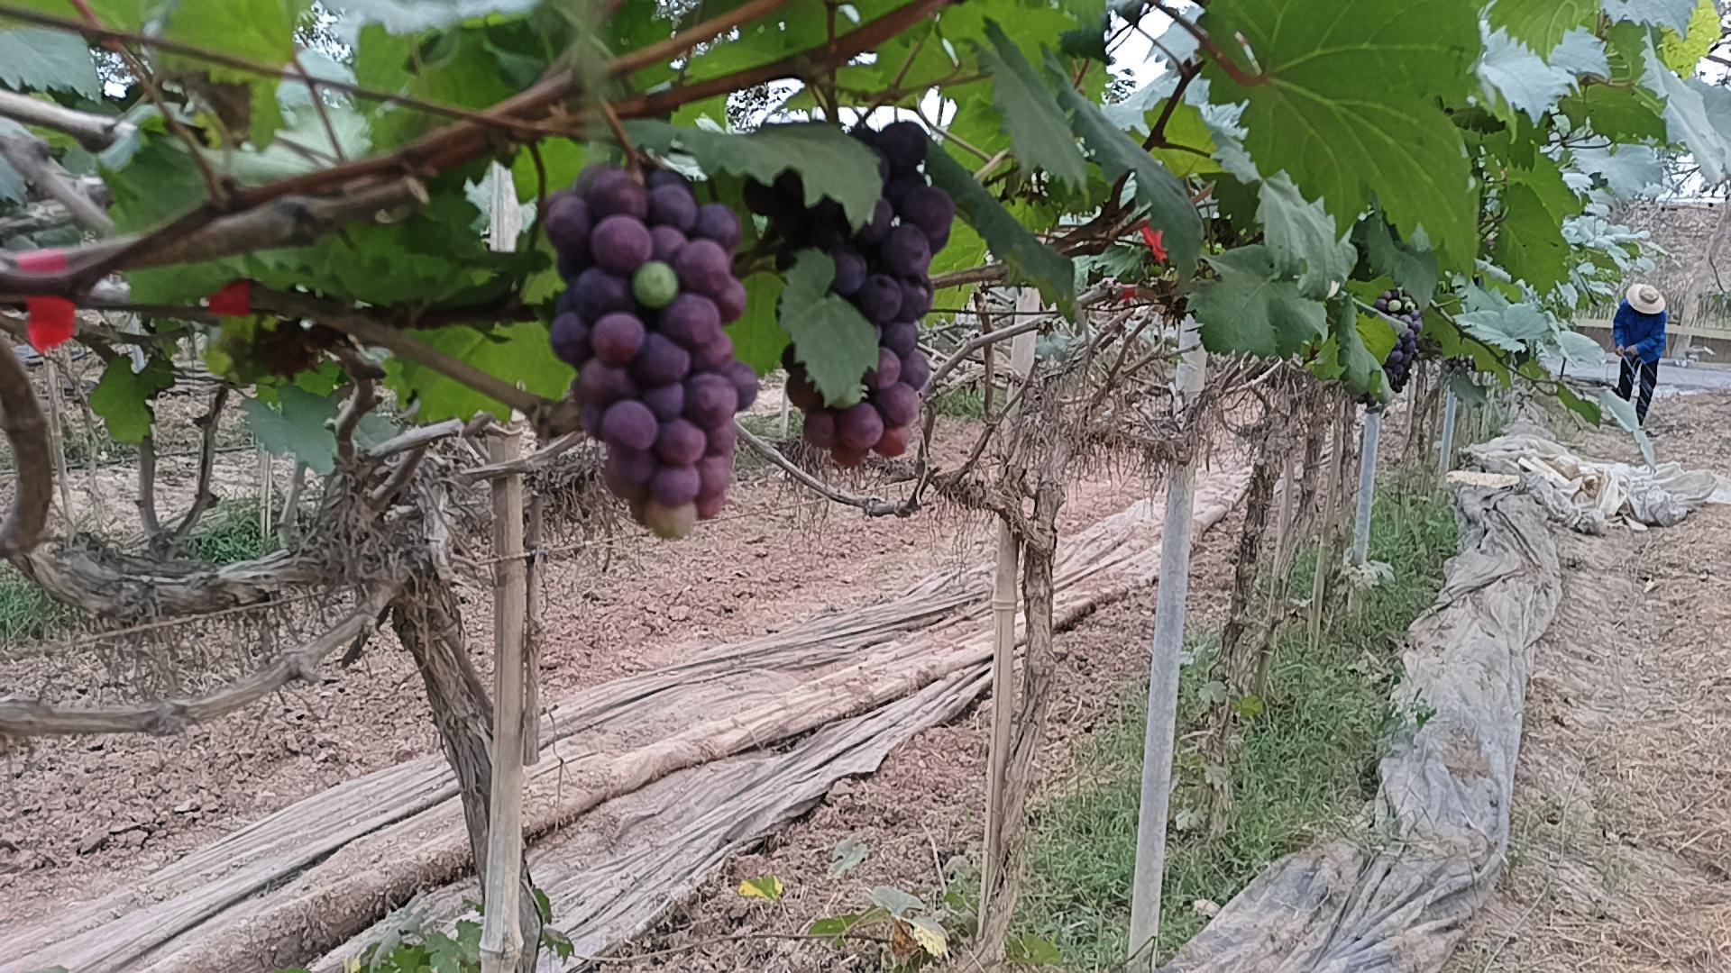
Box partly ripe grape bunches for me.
[1372,288,1423,393]
[545,164,757,537]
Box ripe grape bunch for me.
[746,121,955,466]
